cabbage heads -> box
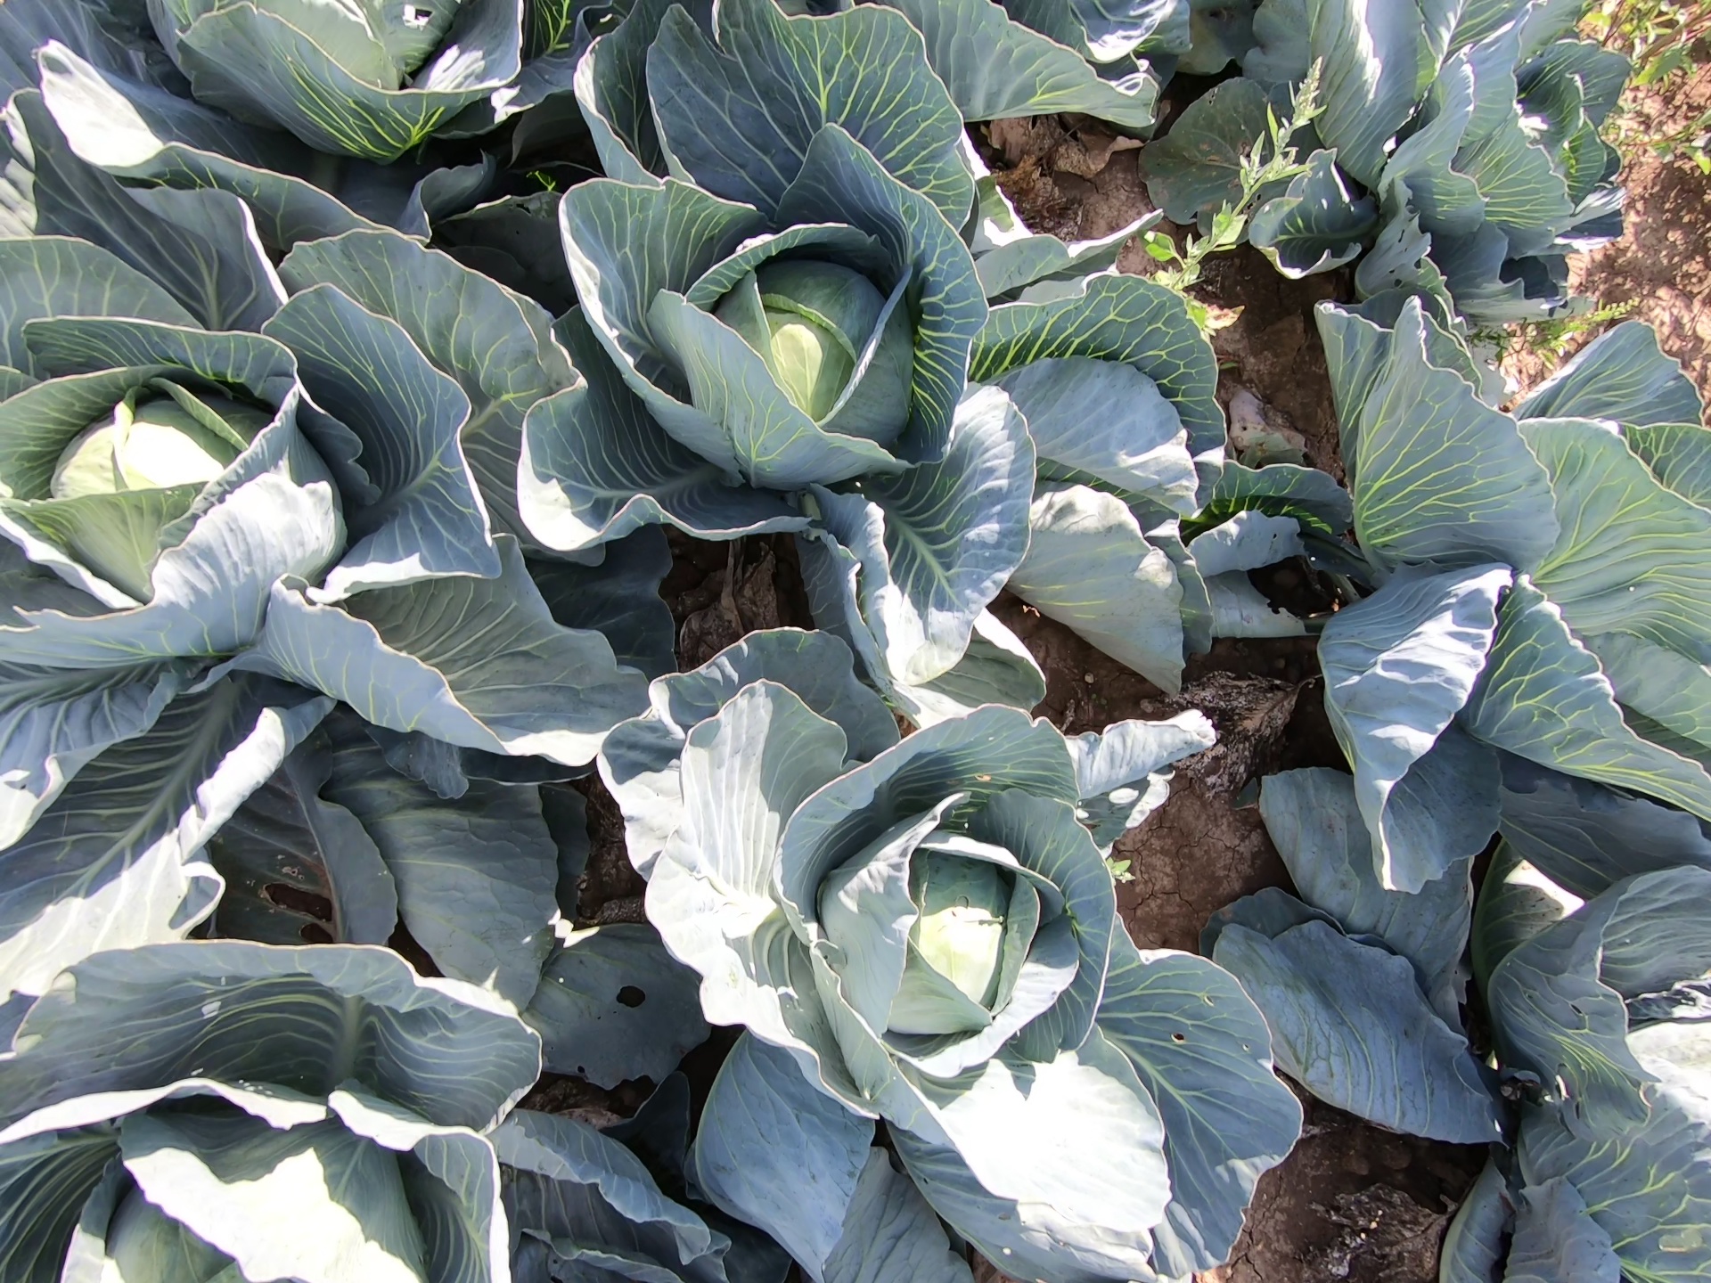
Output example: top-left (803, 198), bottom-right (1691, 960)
top-left (47, 388), bottom-right (342, 616)
top-left (718, 260), bottom-right (899, 456)
top-left (94, 1117), bottom-right (416, 1278)
top-left (1582, 1000), bottom-right (1707, 1264)
top-left (1453, 102), bottom-right (1570, 218)
top-left (847, 844), bottom-right (1027, 1036)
